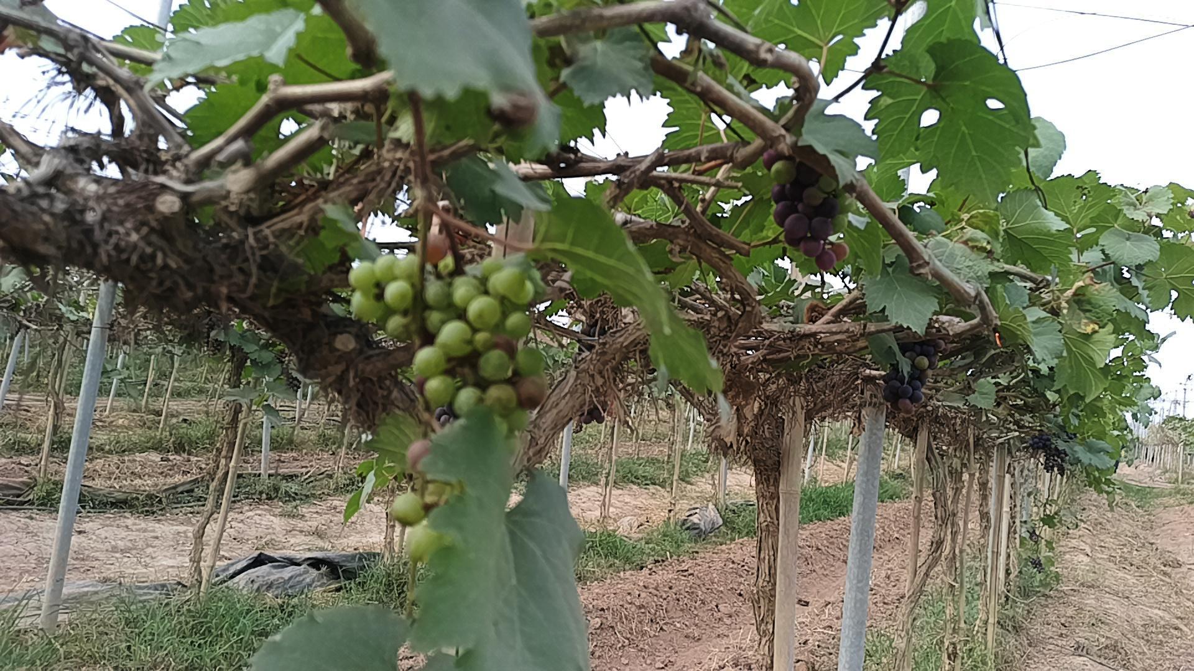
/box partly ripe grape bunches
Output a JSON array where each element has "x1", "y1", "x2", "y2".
[
  {"x1": 349, "y1": 215, "x2": 546, "y2": 560},
  {"x1": 764, "y1": 150, "x2": 851, "y2": 270},
  {"x1": 883, "y1": 339, "x2": 946, "y2": 415}
]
